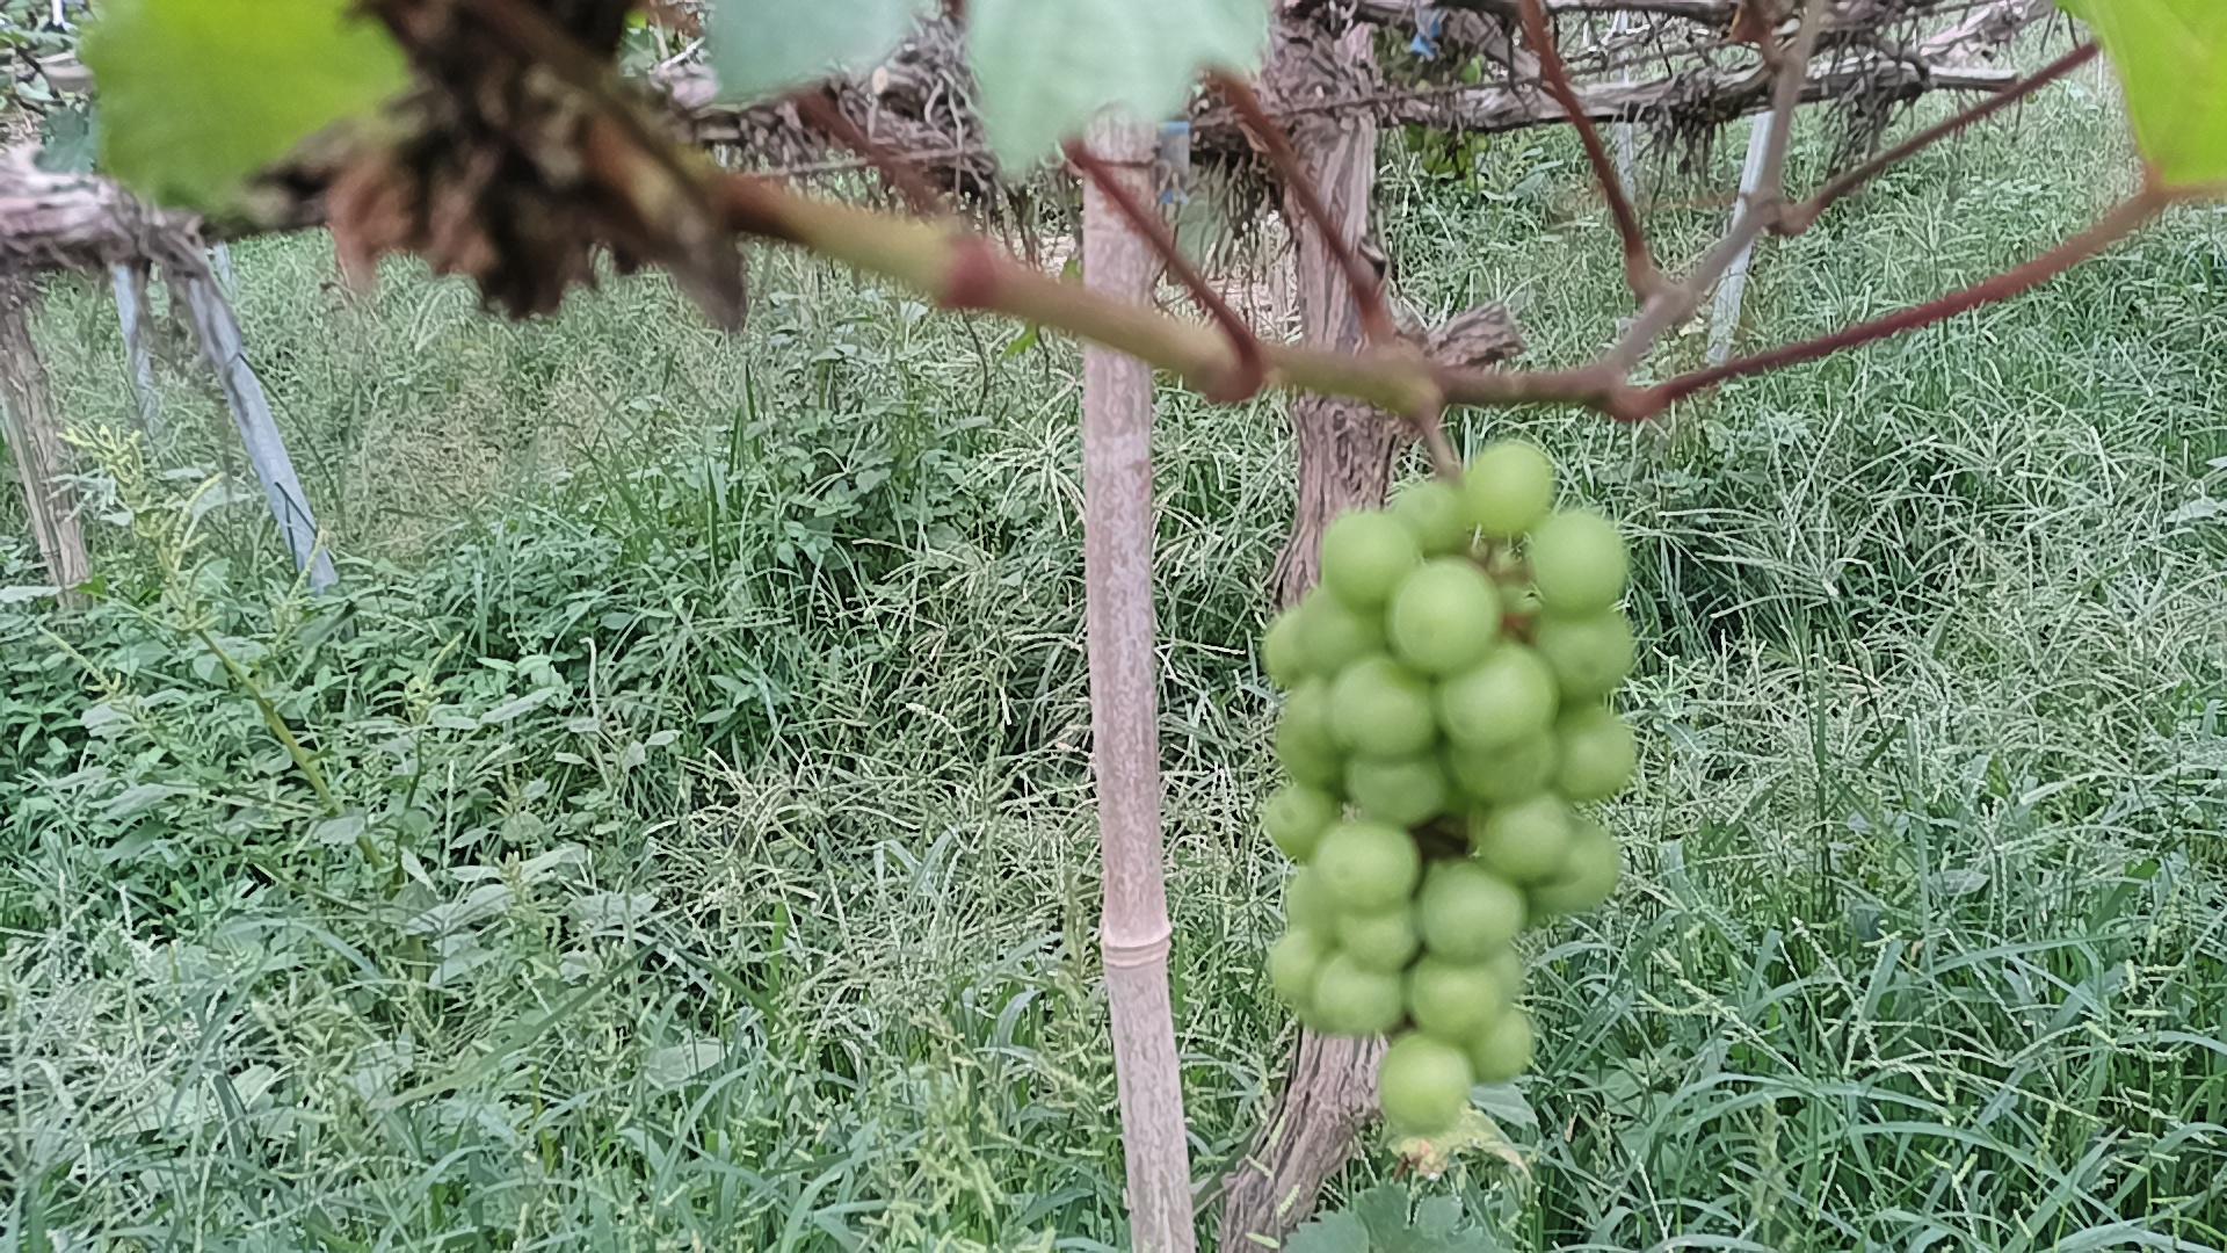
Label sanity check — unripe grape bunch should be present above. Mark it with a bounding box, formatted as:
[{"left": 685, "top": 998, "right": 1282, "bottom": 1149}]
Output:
[{"left": 1260, "top": 440, "right": 1635, "bottom": 1158}]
